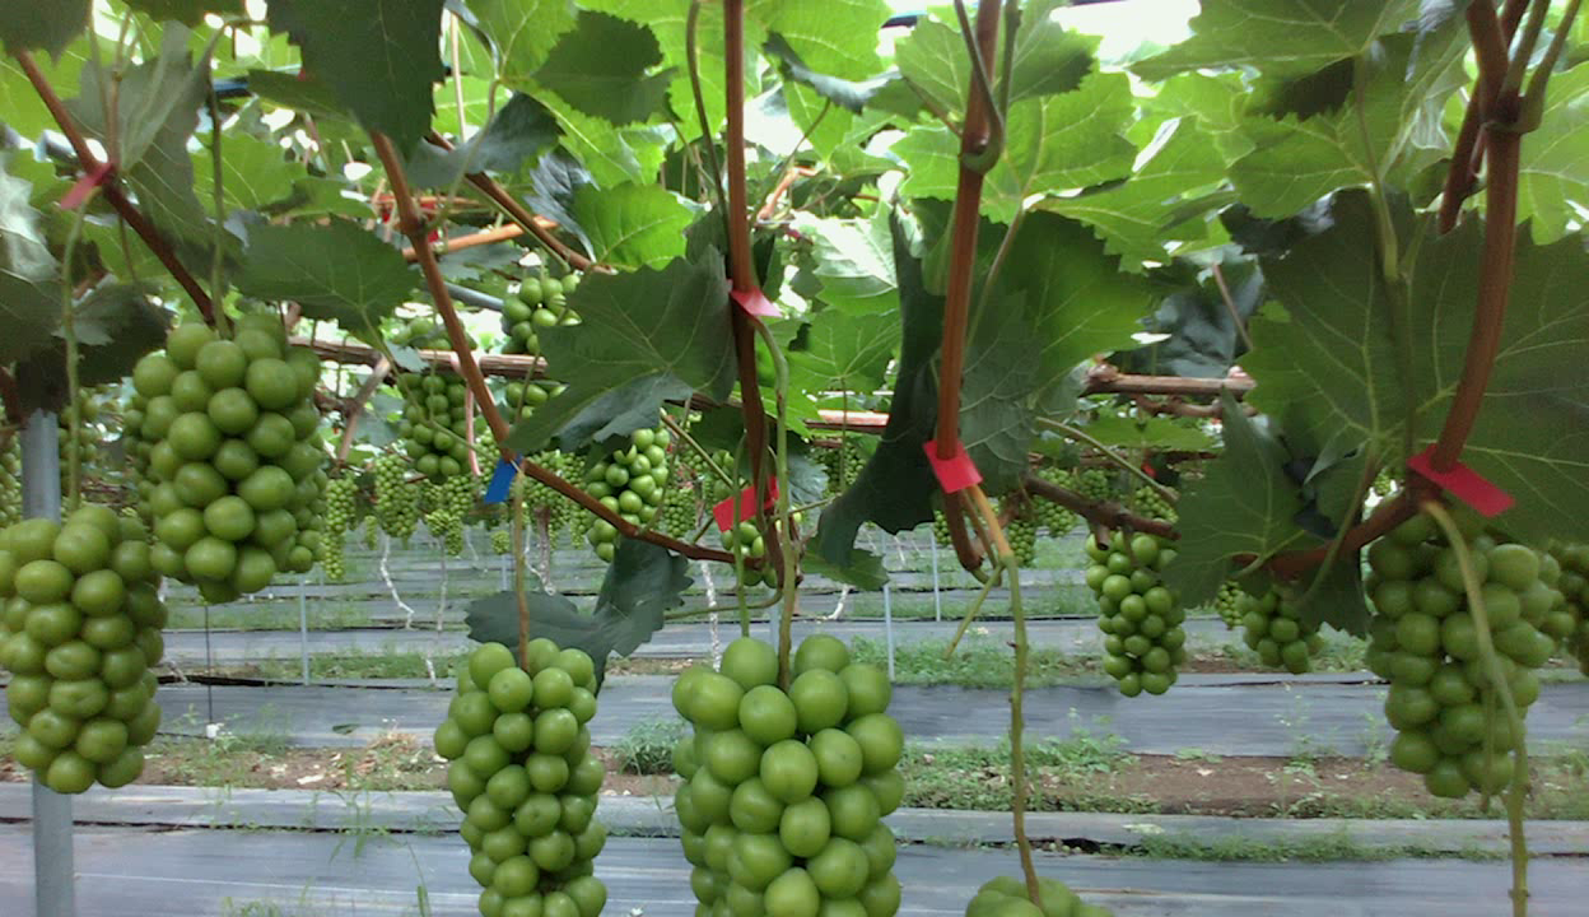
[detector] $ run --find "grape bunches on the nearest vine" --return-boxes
[966,876,1113,916]
[130,315,326,604]
[1,499,168,793]
[668,634,907,916]
[434,637,607,916]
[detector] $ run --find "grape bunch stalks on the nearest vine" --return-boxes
[57,185,102,517]
[208,78,233,339]
[513,473,530,674]
[966,484,1042,907]
[750,320,797,693]
[1420,498,1534,913]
